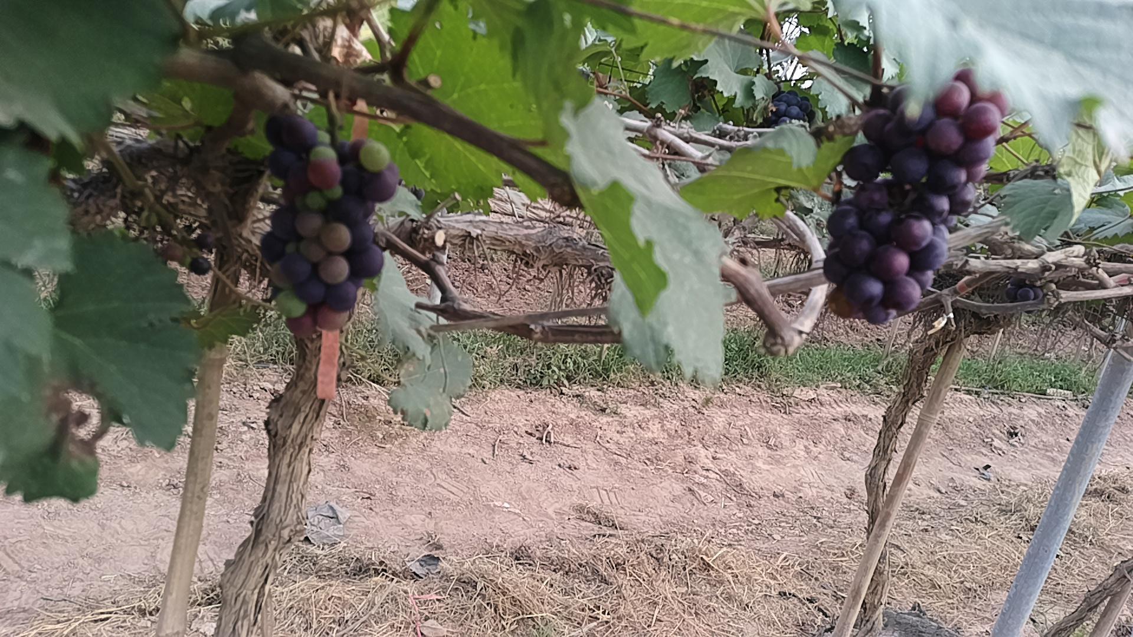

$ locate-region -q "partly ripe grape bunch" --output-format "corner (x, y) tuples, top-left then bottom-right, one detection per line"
(262, 114), (400, 337)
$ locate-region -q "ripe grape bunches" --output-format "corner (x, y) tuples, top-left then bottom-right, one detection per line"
(764, 89), (815, 126)
(823, 70), (1008, 324)
(1005, 280), (1043, 302)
